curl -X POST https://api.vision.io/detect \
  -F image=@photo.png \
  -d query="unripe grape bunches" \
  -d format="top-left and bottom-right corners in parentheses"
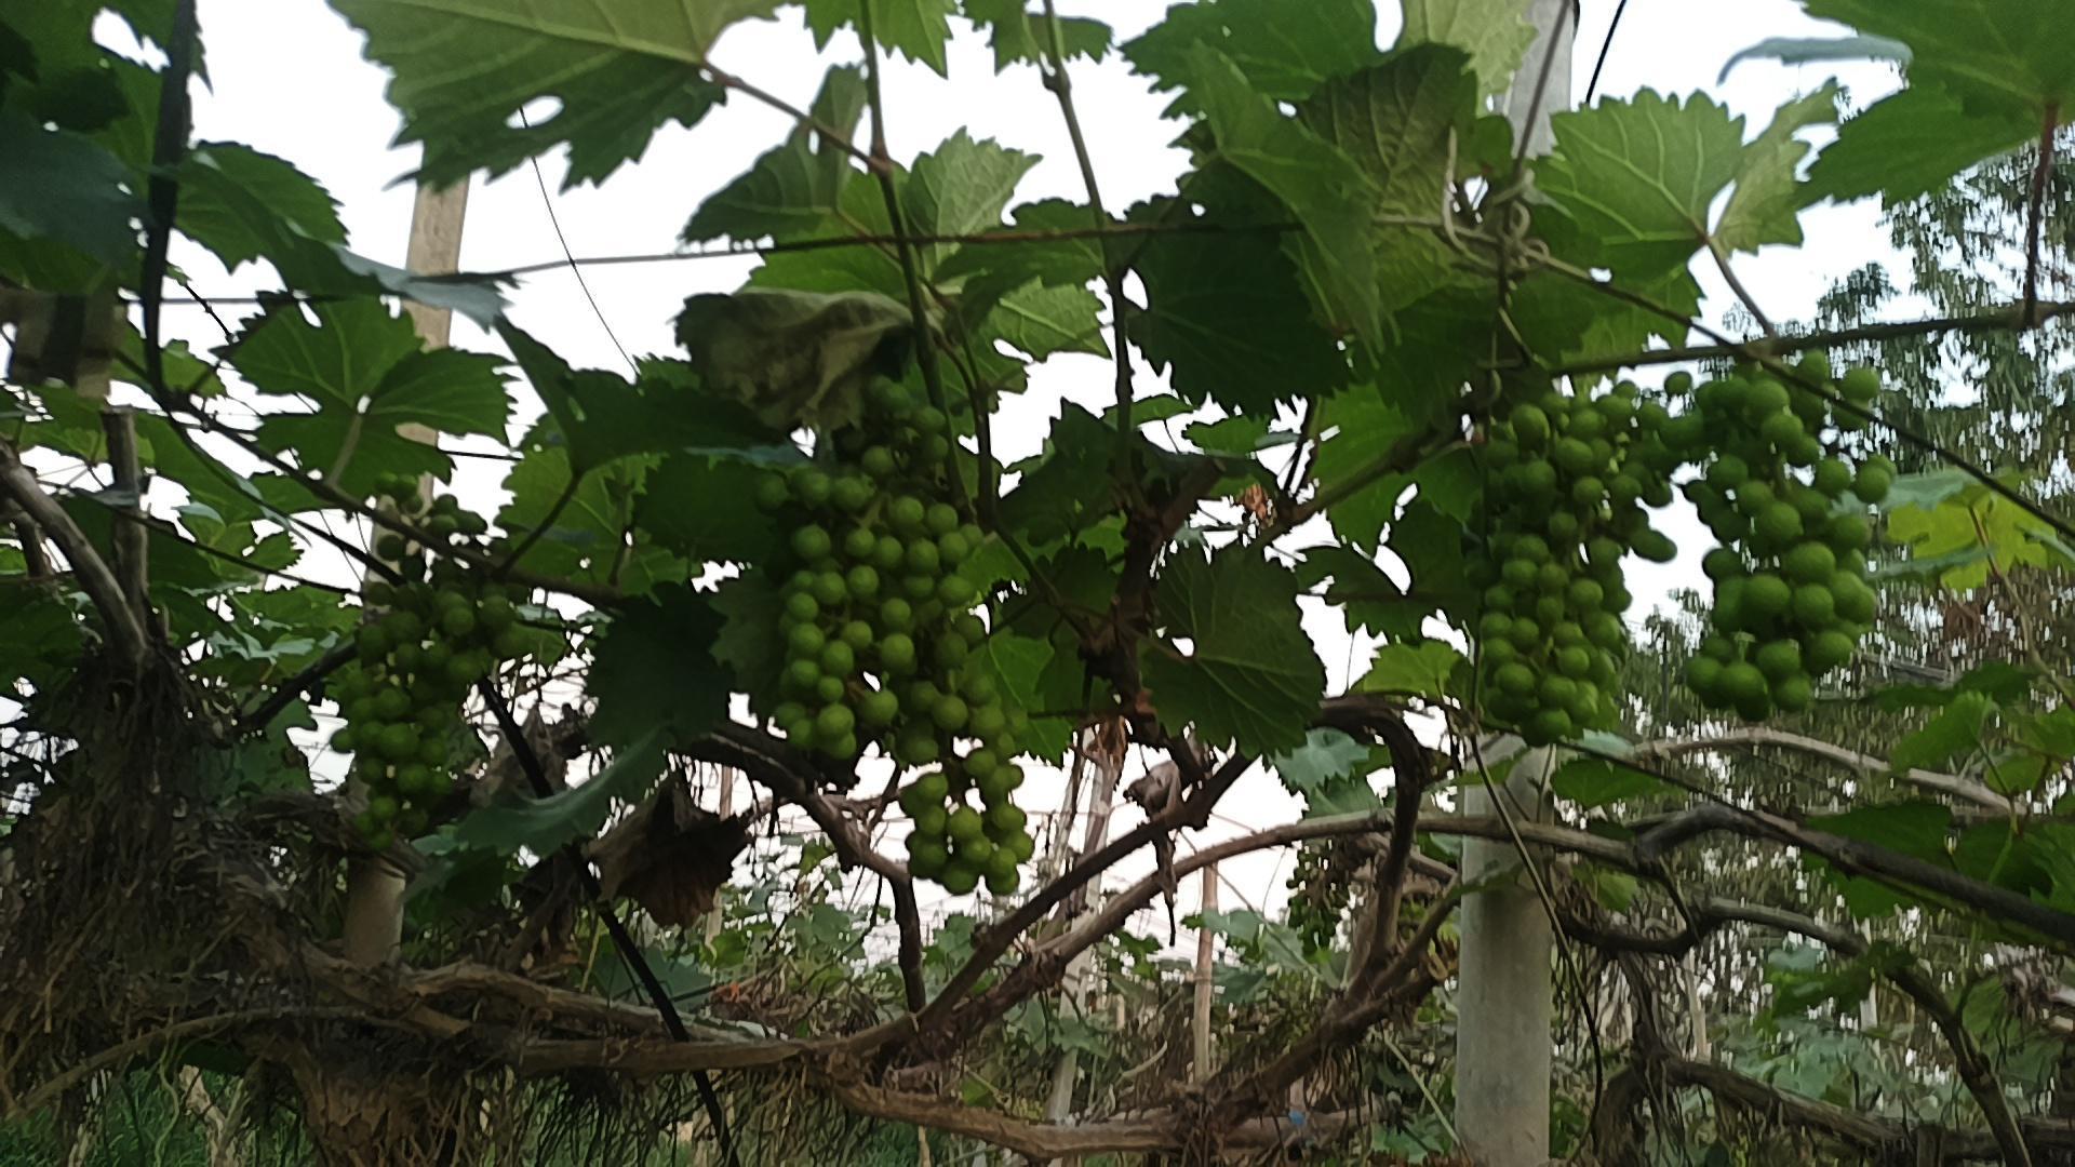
top-left (1657, 348), bottom-right (1895, 721)
top-left (883, 614), bottom-right (1034, 896)
top-left (325, 471), bottom-right (532, 854)
top-left (754, 375), bottom-right (985, 757)
top-left (1462, 379), bottom-right (1681, 749)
